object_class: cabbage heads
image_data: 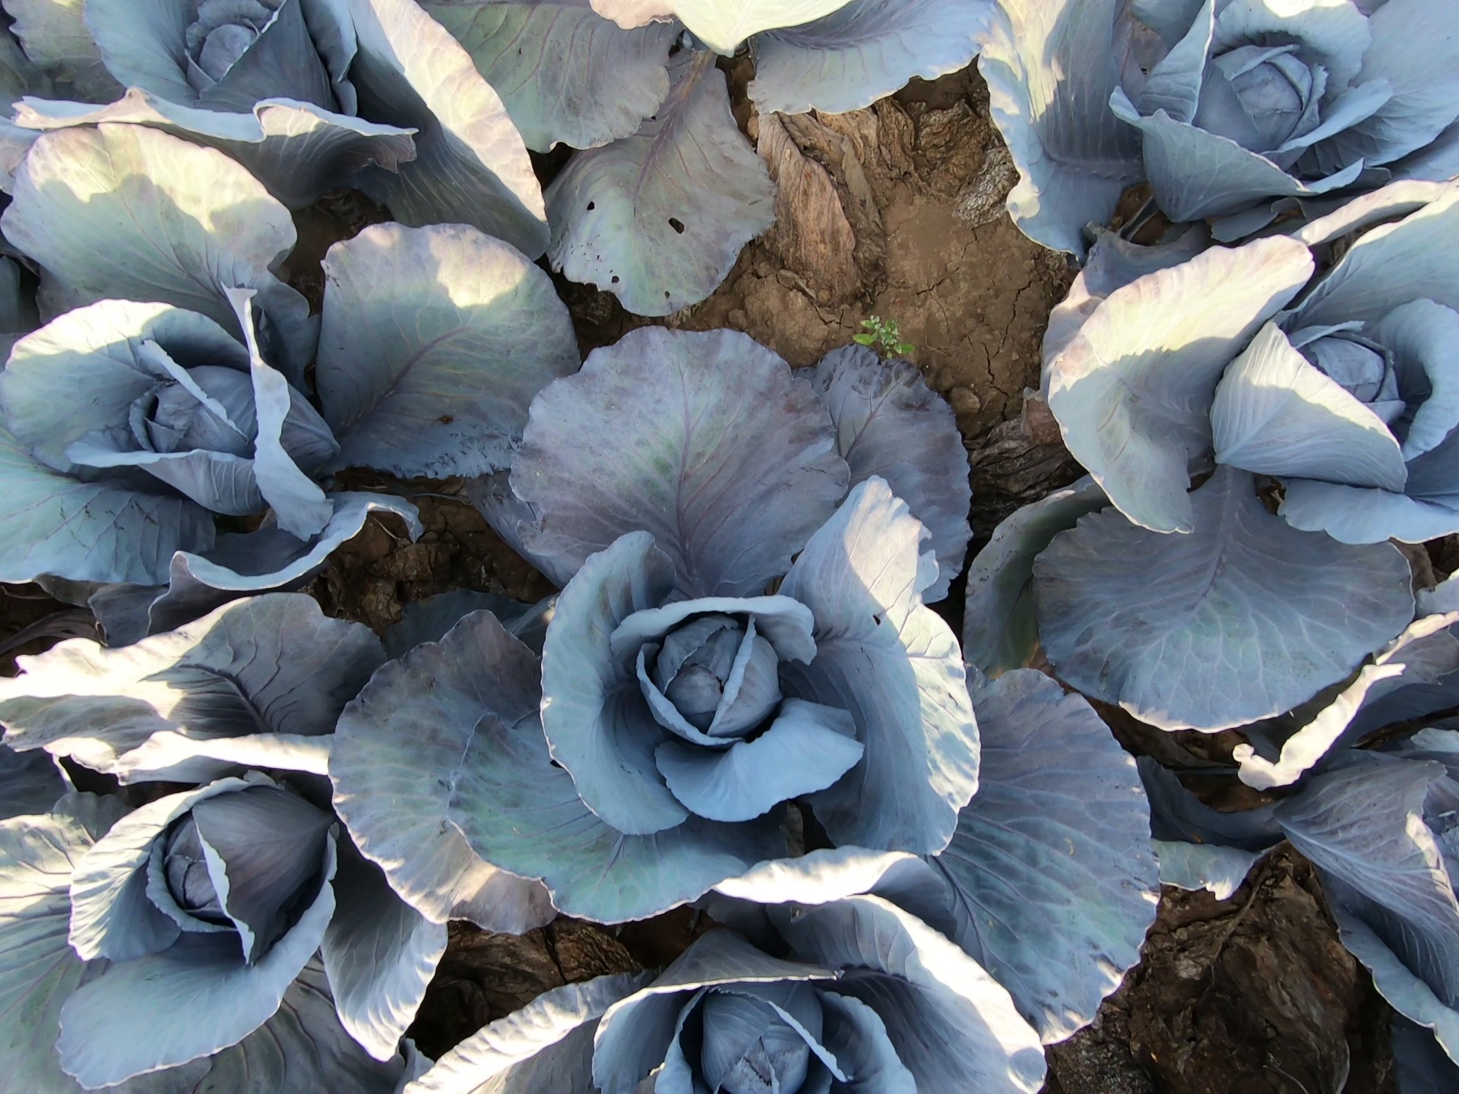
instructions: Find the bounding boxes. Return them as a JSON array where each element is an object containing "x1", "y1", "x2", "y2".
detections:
[
  {"x1": 191, "y1": 18, "x2": 297, "y2": 126},
  {"x1": 161, "y1": 792, "x2": 317, "y2": 916},
  {"x1": 145, "y1": 367, "x2": 291, "y2": 486},
  {"x1": 1326, "y1": 763, "x2": 1457, "y2": 899},
  {"x1": 1248, "y1": 328, "x2": 1403, "y2": 462},
  {"x1": 654, "y1": 626, "x2": 776, "y2": 741},
  {"x1": 700, "y1": 970, "x2": 817, "y2": 1092},
  {"x1": 1179, "y1": 43, "x2": 1314, "y2": 174}
]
